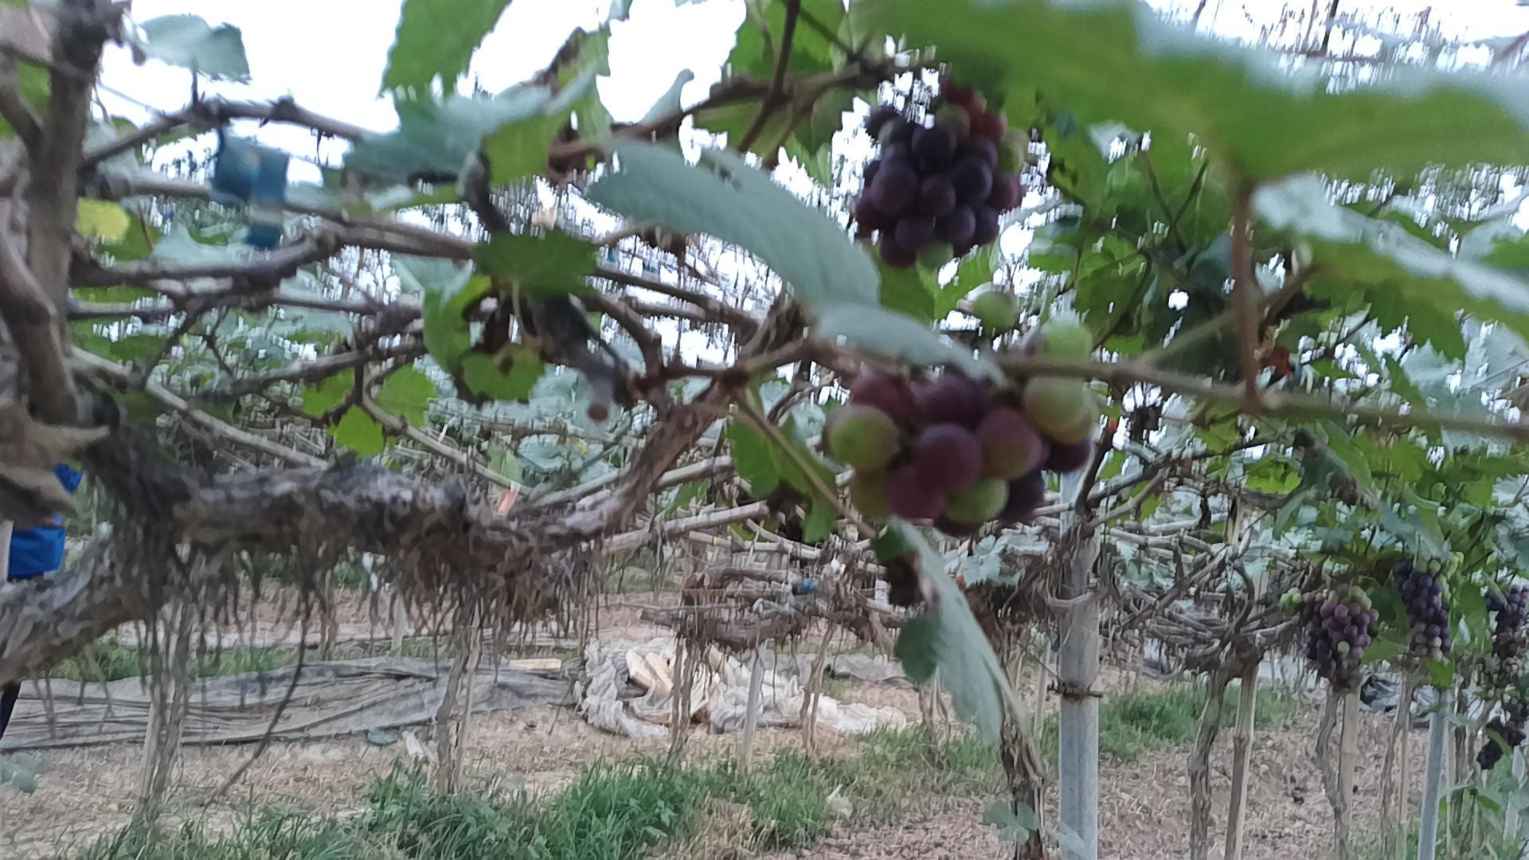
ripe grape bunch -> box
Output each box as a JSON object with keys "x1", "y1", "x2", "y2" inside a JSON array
[{"x1": 1476, "y1": 698, "x2": 1528, "y2": 769}]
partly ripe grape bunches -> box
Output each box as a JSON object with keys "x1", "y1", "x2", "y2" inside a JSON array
[
  {"x1": 1391, "y1": 550, "x2": 1464, "y2": 658},
  {"x1": 852, "y1": 65, "x2": 1032, "y2": 268},
  {"x1": 823, "y1": 288, "x2": 1097, "y2": 536},
  {"x1": 1280, "y1": 584, "x2": 1379, "y2": 694},
  {"x1": 1484, "y1": 584, "x2": 1528, "y2": 684}
]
